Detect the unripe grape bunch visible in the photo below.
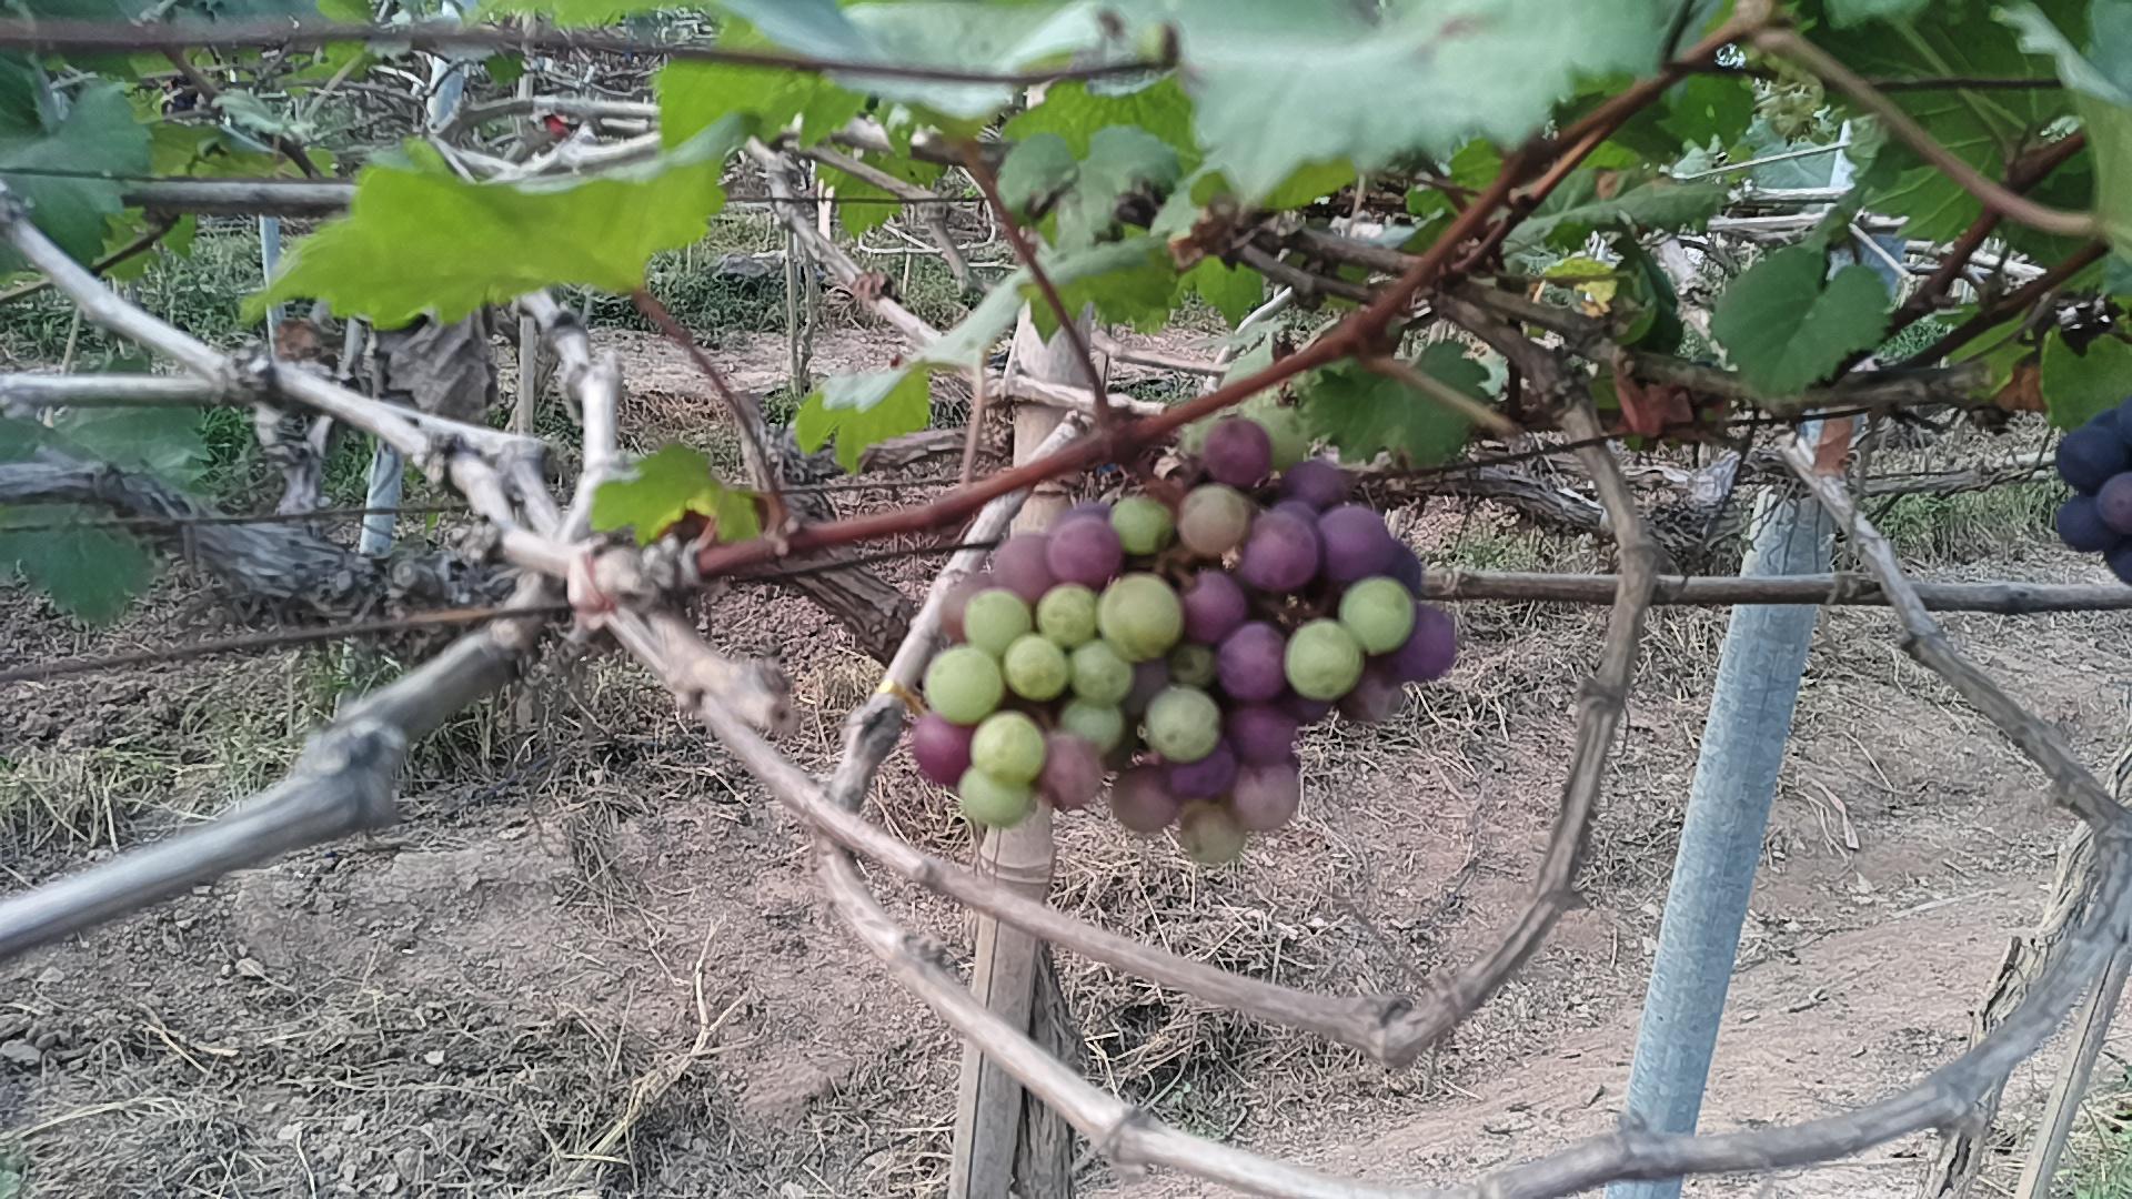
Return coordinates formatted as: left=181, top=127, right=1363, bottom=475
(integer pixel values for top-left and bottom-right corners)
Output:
left=912, top=416, right=1456, bottom=864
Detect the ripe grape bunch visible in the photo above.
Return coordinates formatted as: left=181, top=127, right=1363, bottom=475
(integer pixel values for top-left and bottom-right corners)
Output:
left=2055, top=397, right=2131, bottom=584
